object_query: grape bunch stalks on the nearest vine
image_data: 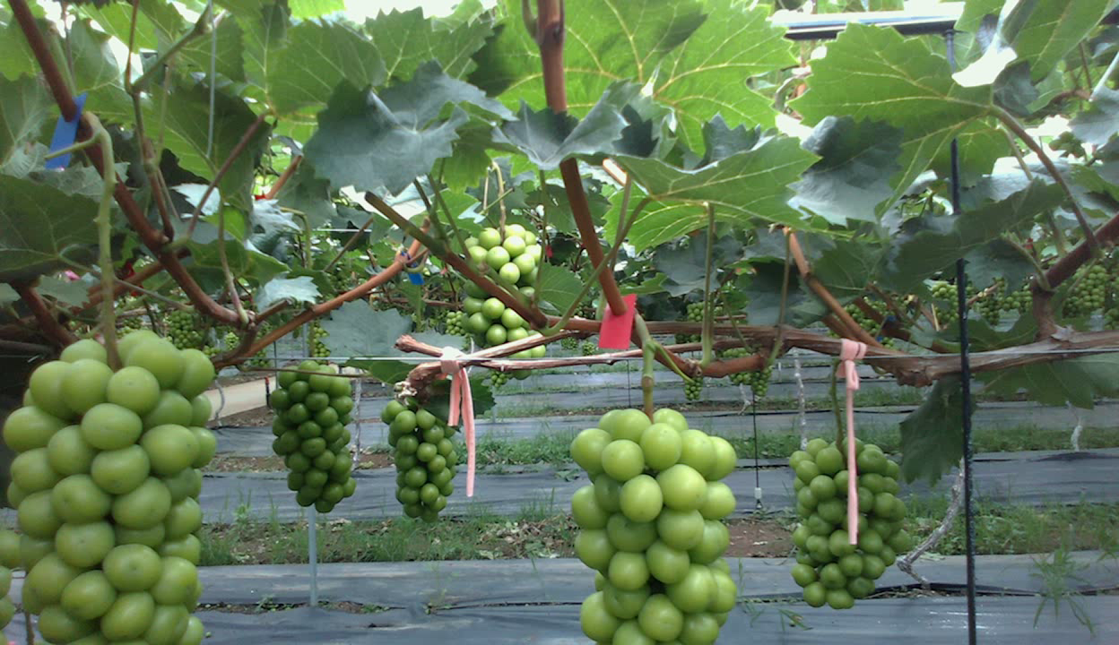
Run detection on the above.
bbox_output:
[829,358,848,469]
[634,312,655,424]
[84,109,121,372]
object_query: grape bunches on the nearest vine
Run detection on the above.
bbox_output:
[4,330,217,643]
[788,436,909,610]
[569,408,737,644]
